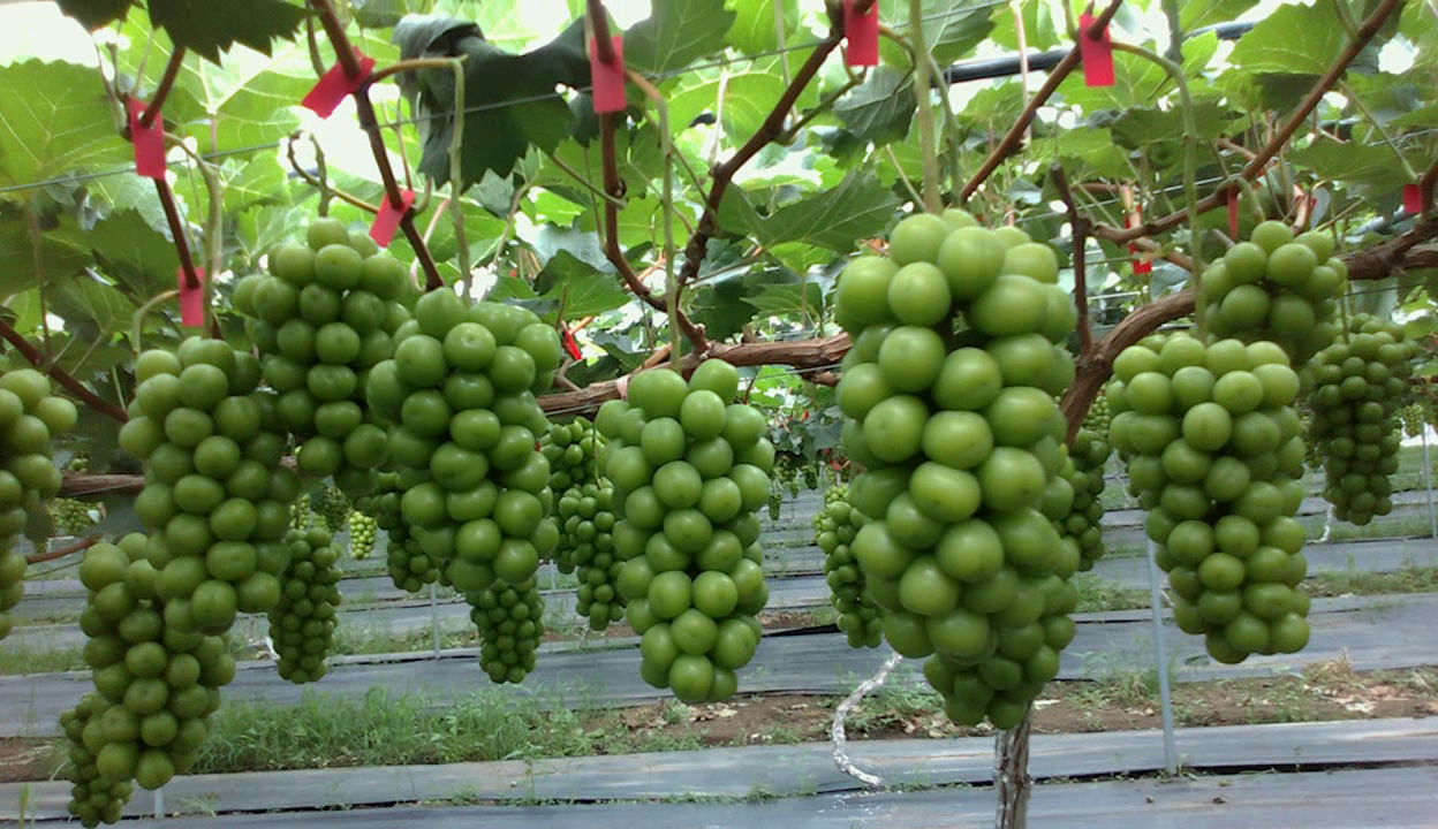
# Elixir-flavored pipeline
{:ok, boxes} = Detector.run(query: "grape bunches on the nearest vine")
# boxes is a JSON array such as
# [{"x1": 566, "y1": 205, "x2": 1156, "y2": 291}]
[
  {"x1": 116, "y1": 336, "x2": 301, "y2": 636},
  {"x1": 233, "y1": 215, "x2": 410, "y2": 497},
  {"x1": 1105, "y1": 332, "x2": 1311, "y2": 664},
  {"x1": 365, "y1": 288, "x2": 561, "y2": 593},
  {"x1": 596, "y1": 357, "x2": 775, "y2": 702},
  {"x1": 832, "y1": 208, "x2": 1080, "y2": 732},
  {"x1": 78, "y1": 533, "x2": 236, "y2": 791},
  {"x1": 1204, "y1": 220, "x2": 1349, "y2": 395}
]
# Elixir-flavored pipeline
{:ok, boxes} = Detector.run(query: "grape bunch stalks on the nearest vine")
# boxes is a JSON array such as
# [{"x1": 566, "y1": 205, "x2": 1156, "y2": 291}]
[
  {"x1": 626, "y1": 71, "x2": 682, "y2": 375},
  {"x1": 289, "y1": 128, "x2": 335, "y2": 216},
  {"x1": 165, "y1": 129, "x2": 222, "y2": 337},
  {"x1": 1112, "y1": 40, "x2": 1208, "y2": 348},
  {"x1": 374, "y1": 56, "x2": 476, "y2": 306},
  {"x1": 1218, "y1": 176, "x2": 1266, "y2": 226},
  {"x1": 907, "y1": 2, "x2": 945, "y2": 216}
]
